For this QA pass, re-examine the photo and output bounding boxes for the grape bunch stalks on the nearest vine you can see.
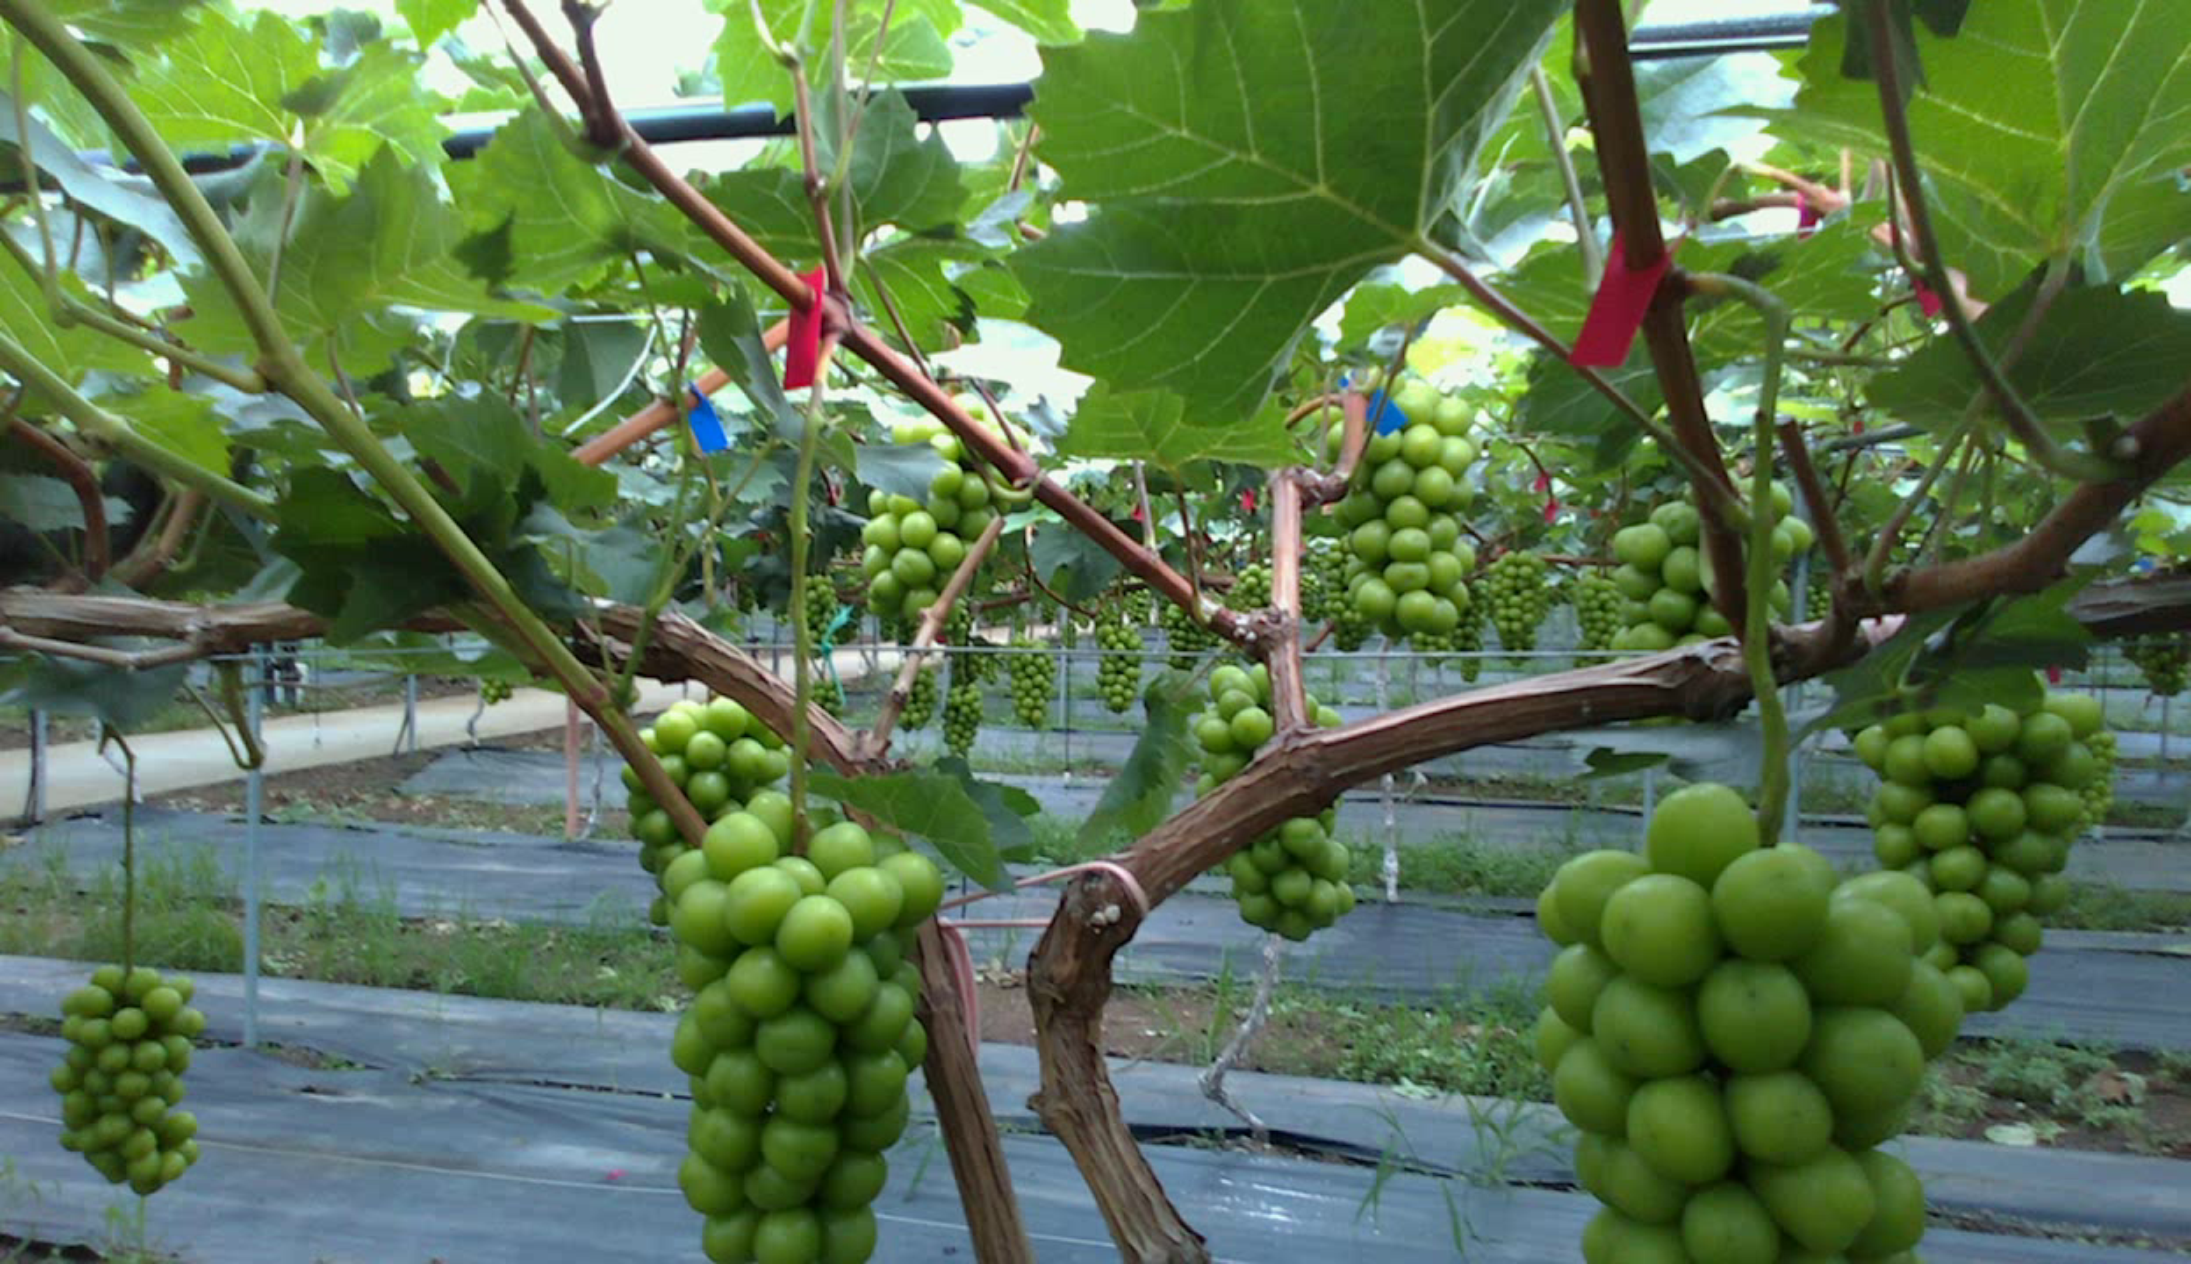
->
[787,334,841,855]
[1684,270,1791,848]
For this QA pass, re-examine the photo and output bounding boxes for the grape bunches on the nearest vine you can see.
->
[664,792,945,1262]
[1531,781,1965,1262]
